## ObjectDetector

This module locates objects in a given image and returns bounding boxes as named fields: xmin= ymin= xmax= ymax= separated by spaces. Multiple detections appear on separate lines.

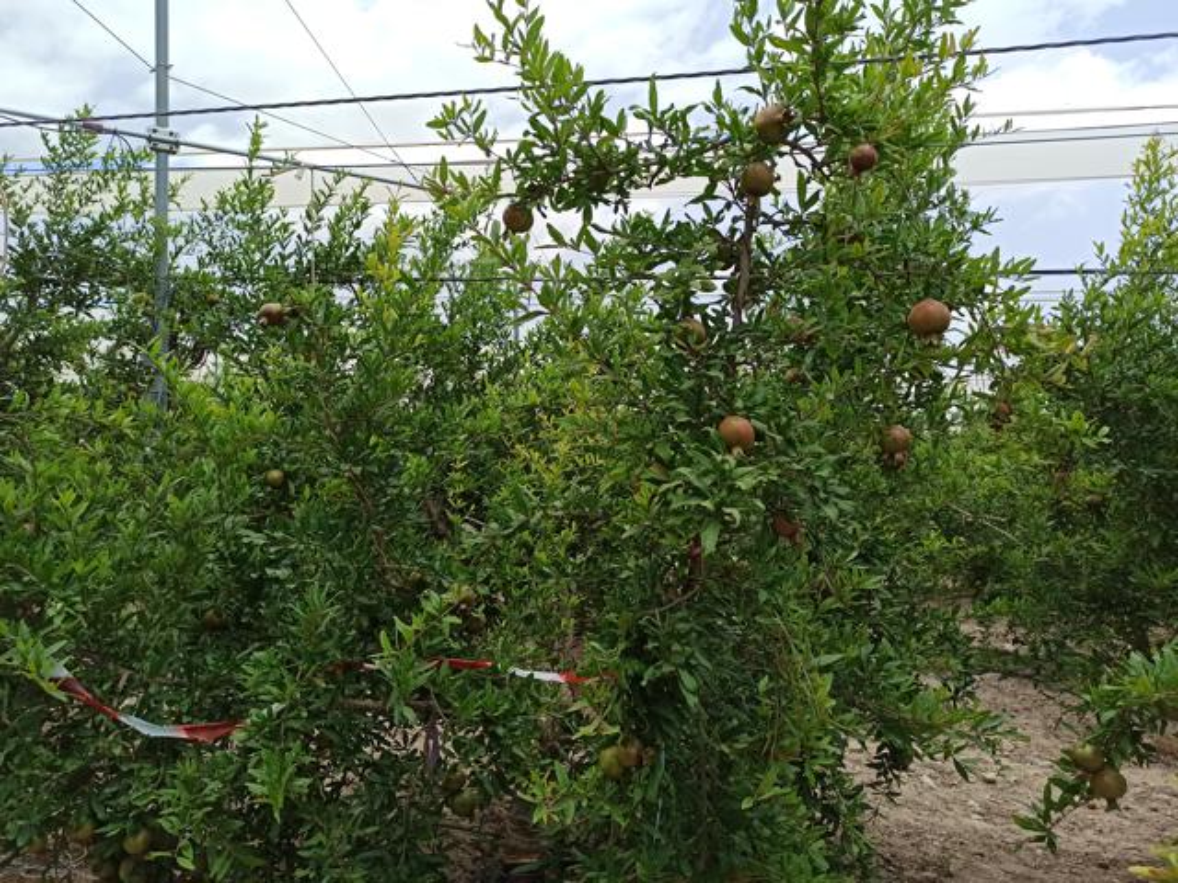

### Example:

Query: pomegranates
xmin=847 ymin=143 xmax=878 ymax=178
xmin=1073 ymin=741 xmax=1106 ymax=780
xmin=449 ymin=787 xmax=490 ymax=819
xmin=501 ymin=202 xmax=534 ymax=239
xmin=1090 ymin=763 xmax=1128 ymax=813
xmin=771 ymin=513 xmax=803 ymax=545
xmin=442 ymin=765 xmax=468 ymax=791
xmin=753 ymin=105 xmax=795 ymax=142
xmin=121 ymin=828 xmax=151 ymax=857
xmin=679 ymin=318 xmax=707 ymax=344
xmin=118 ymin=857 xmax=147 ymax=883
xmin=598 ymin=745 xmax=639 ymax=782
xmin=882 ymin=427 xmax=911 ymax=469
xmin=70 ymin=820 xmax=94 ymax=846
xmin=907 ymin=298 xmax=952 ymax=348
xmin=265 ymin=467 xmax=285 ymax=487
xmin=26 ymin=841 xmax=48 ymax=857
xmin=738 ymin=160 xmax=775 ymax=210
xmin=256 ymin=302 xmax=285 ymax=329
xmin=716 ymin=414 xmax=756 ymax=456
xmin=784 ymin=366 xmax=808 ymax=384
